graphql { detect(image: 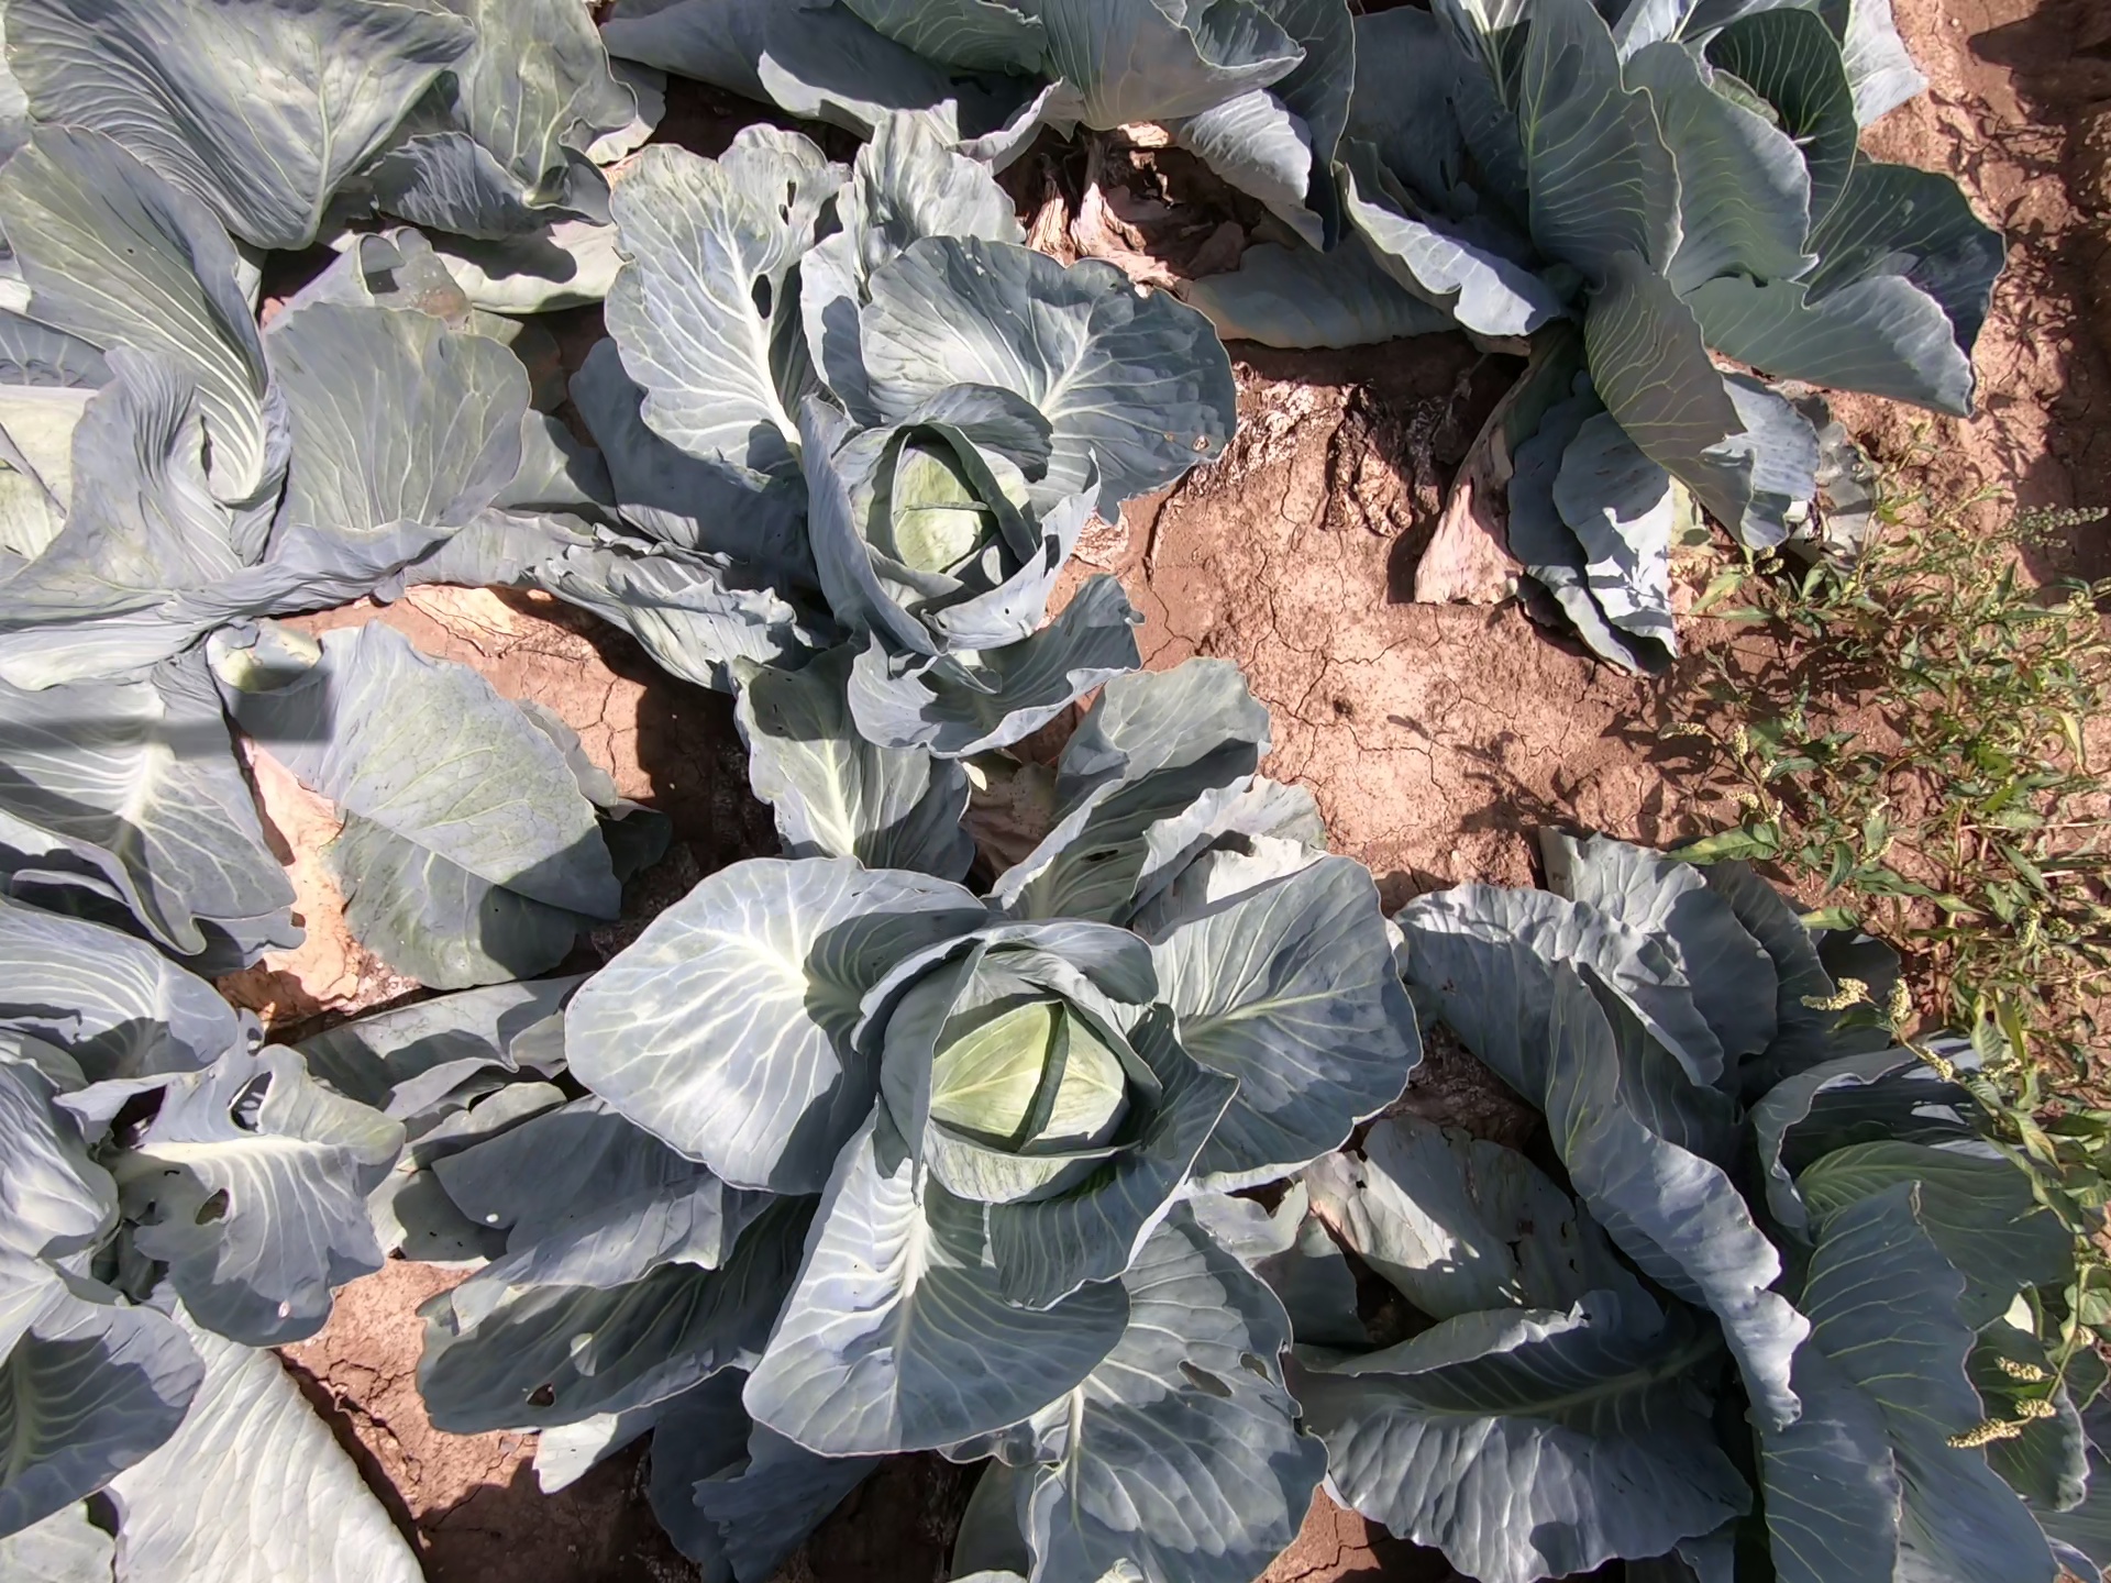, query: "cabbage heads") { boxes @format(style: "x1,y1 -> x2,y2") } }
885,947 -> 1137,1202
1599,80 -> 1754,294
2,380 -> 207,629
829,429 -> 1041,630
